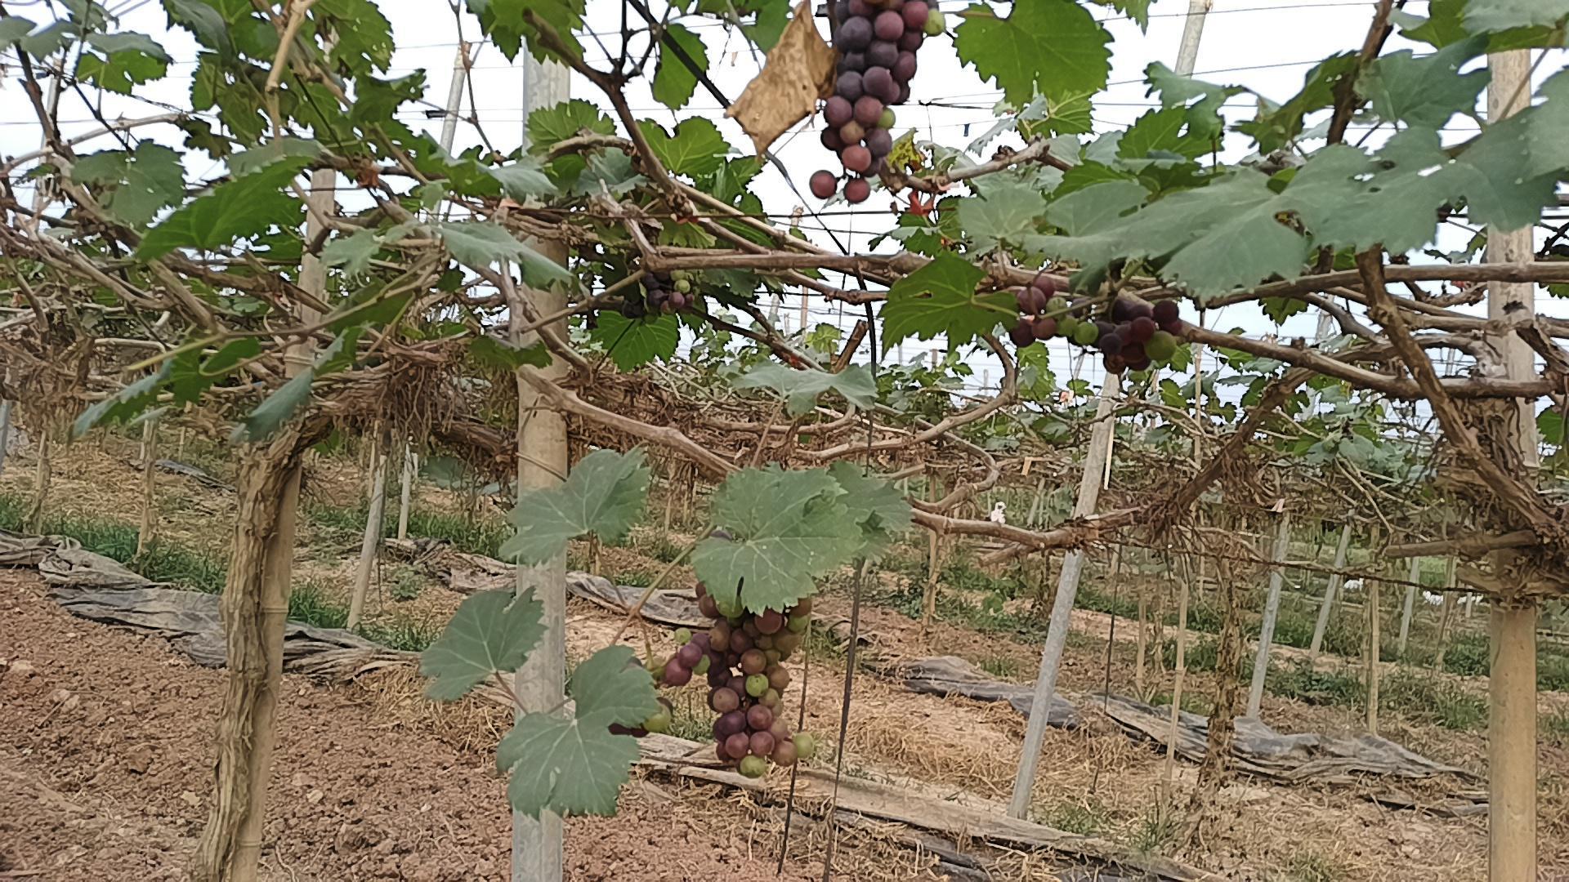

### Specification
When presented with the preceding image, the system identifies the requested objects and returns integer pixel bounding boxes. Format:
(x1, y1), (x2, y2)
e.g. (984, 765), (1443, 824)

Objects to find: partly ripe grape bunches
(608, 697), (671, 737)
(659, 582), (813, 777)
(619, 270), (695, 318)
(808, 0), (936, 203)
(1008, 276), (1183, 374)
